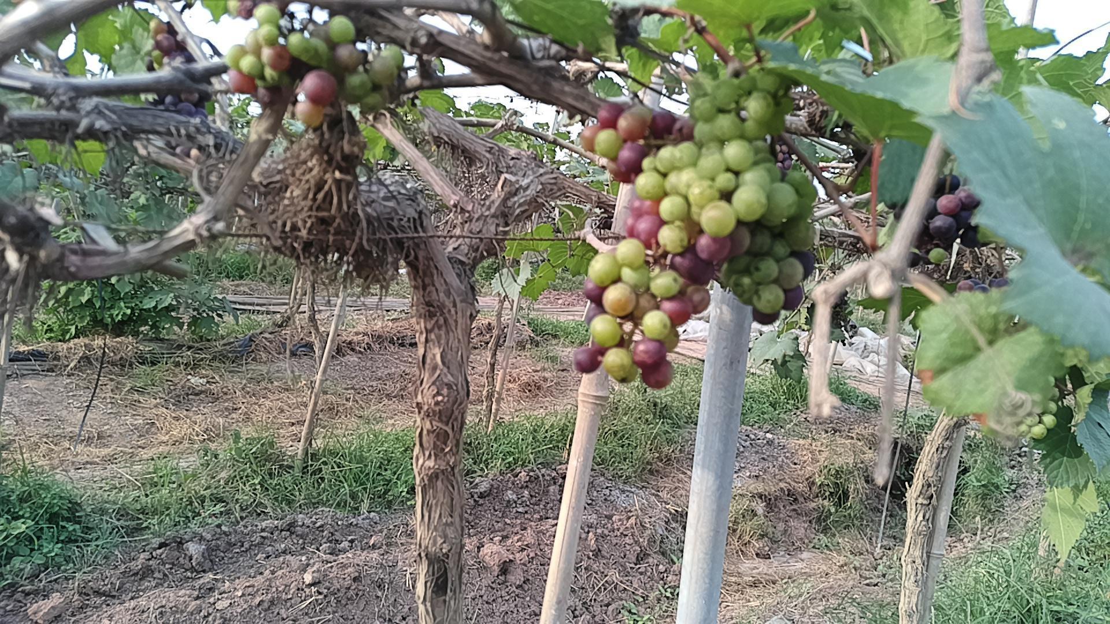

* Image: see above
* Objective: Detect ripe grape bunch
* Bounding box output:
[956,278,1009,292]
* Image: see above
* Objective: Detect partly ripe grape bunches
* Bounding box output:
[580,102,693,183]
[1023,377,1059,439]
[909,177,984,267]
[573,73,798,388]
[720,164,817,324]
[147,19,211,119]
[224,0,402,127]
